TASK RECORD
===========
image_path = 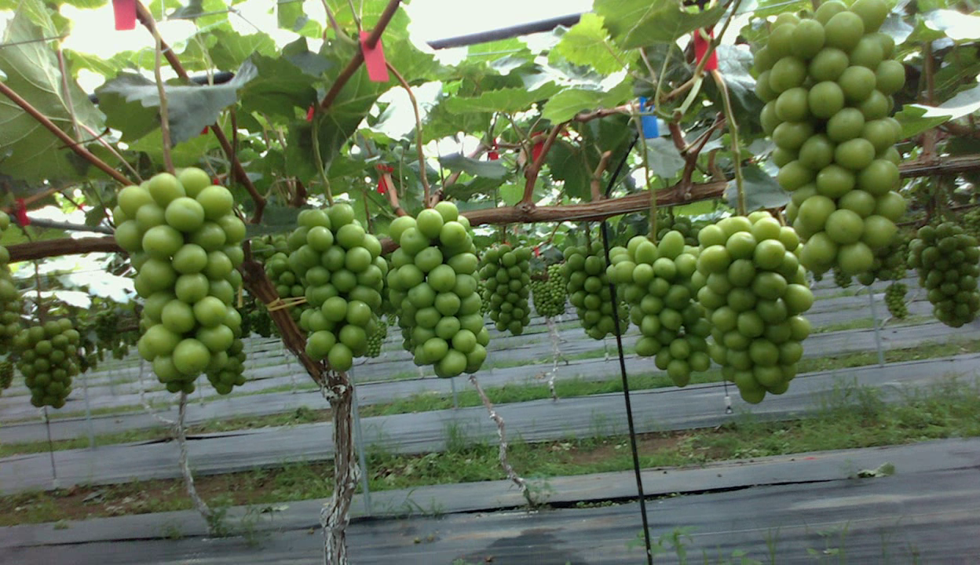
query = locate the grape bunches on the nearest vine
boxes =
[387,199,490,376]
[111,166,249,383]
[288,202,389,371]
[608,230,711,385]
[692,211,814,404]
[755,0,908,275]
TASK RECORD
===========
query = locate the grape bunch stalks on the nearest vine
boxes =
[387,62,431,207]
[137,2,174,175]
[812,0,821,12]
[311,99,333,205]
[712,71,745,216]
[630,115,657,246]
